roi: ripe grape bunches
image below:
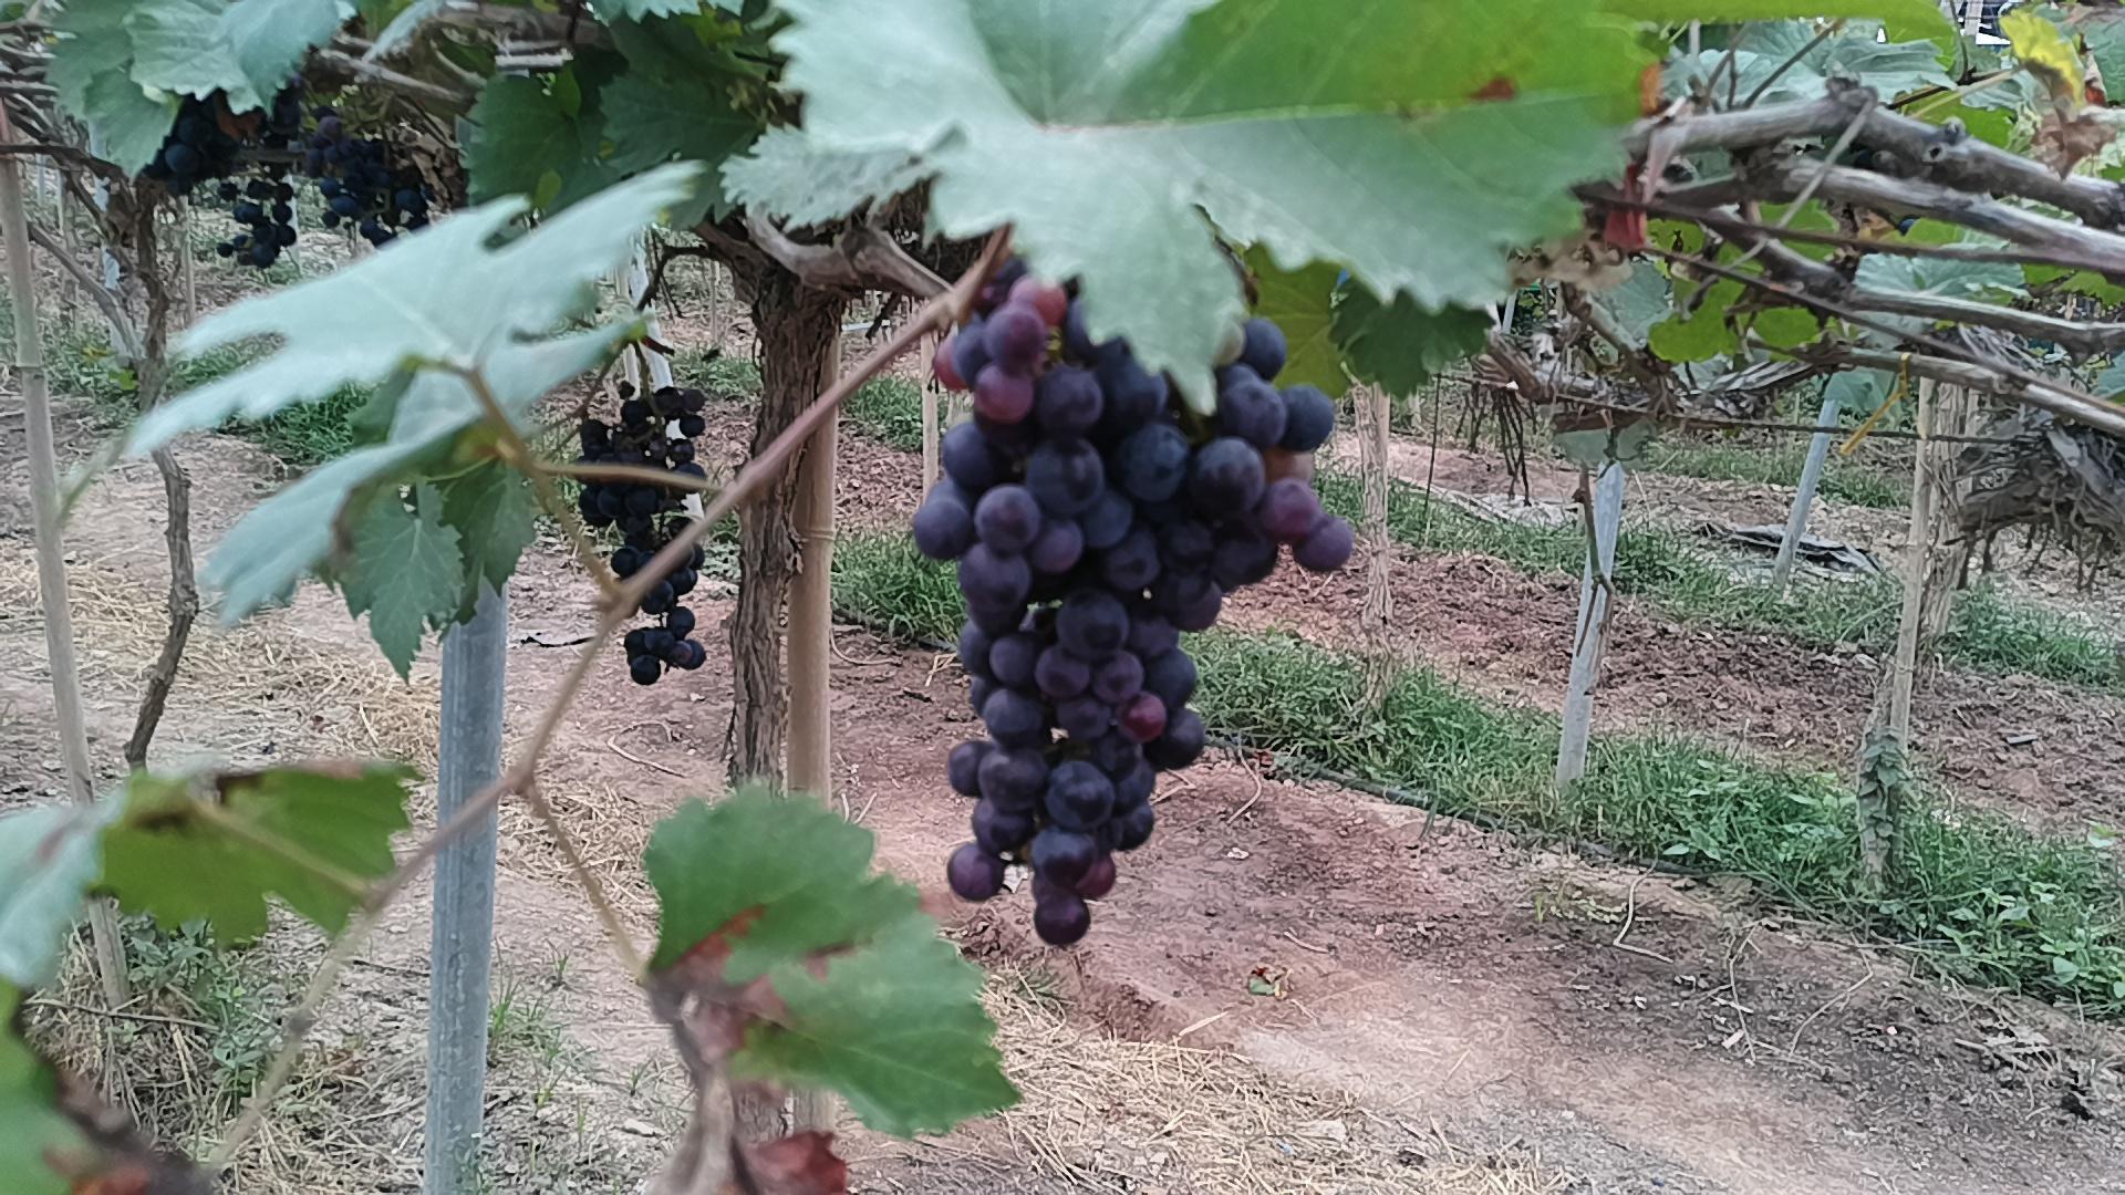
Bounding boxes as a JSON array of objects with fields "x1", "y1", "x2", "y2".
[
  {"x1": 142, "y1": 83, "x2": 303, "y2": 267},
  {"x1": 569, "y1": 383, "x2": 714, "y2": 685},
  {"x1": 913, "y1": 259, "x2": 1351, "y2": 944},
  {"x1": 302, "y1": 108, "x2": 435, "y2": 247}
]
